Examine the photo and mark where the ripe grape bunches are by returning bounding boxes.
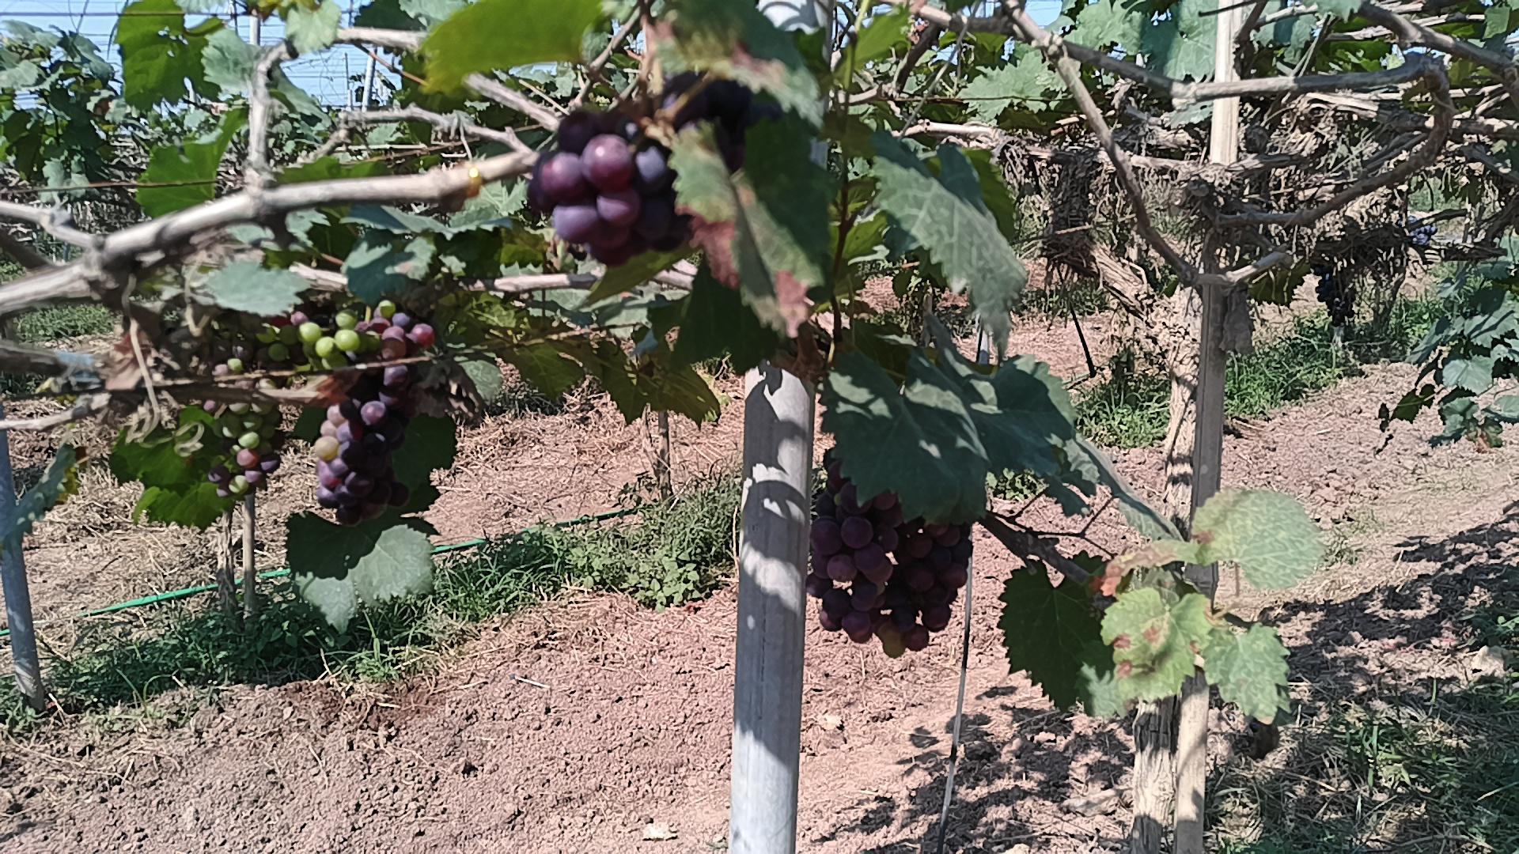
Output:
[527,110,688,266]
[1405,217,1436,247]
[1313,266,1356,327]
[806,455,972,659]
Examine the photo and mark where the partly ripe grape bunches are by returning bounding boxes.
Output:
[203,357,285,497]
[290,300,435,525]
